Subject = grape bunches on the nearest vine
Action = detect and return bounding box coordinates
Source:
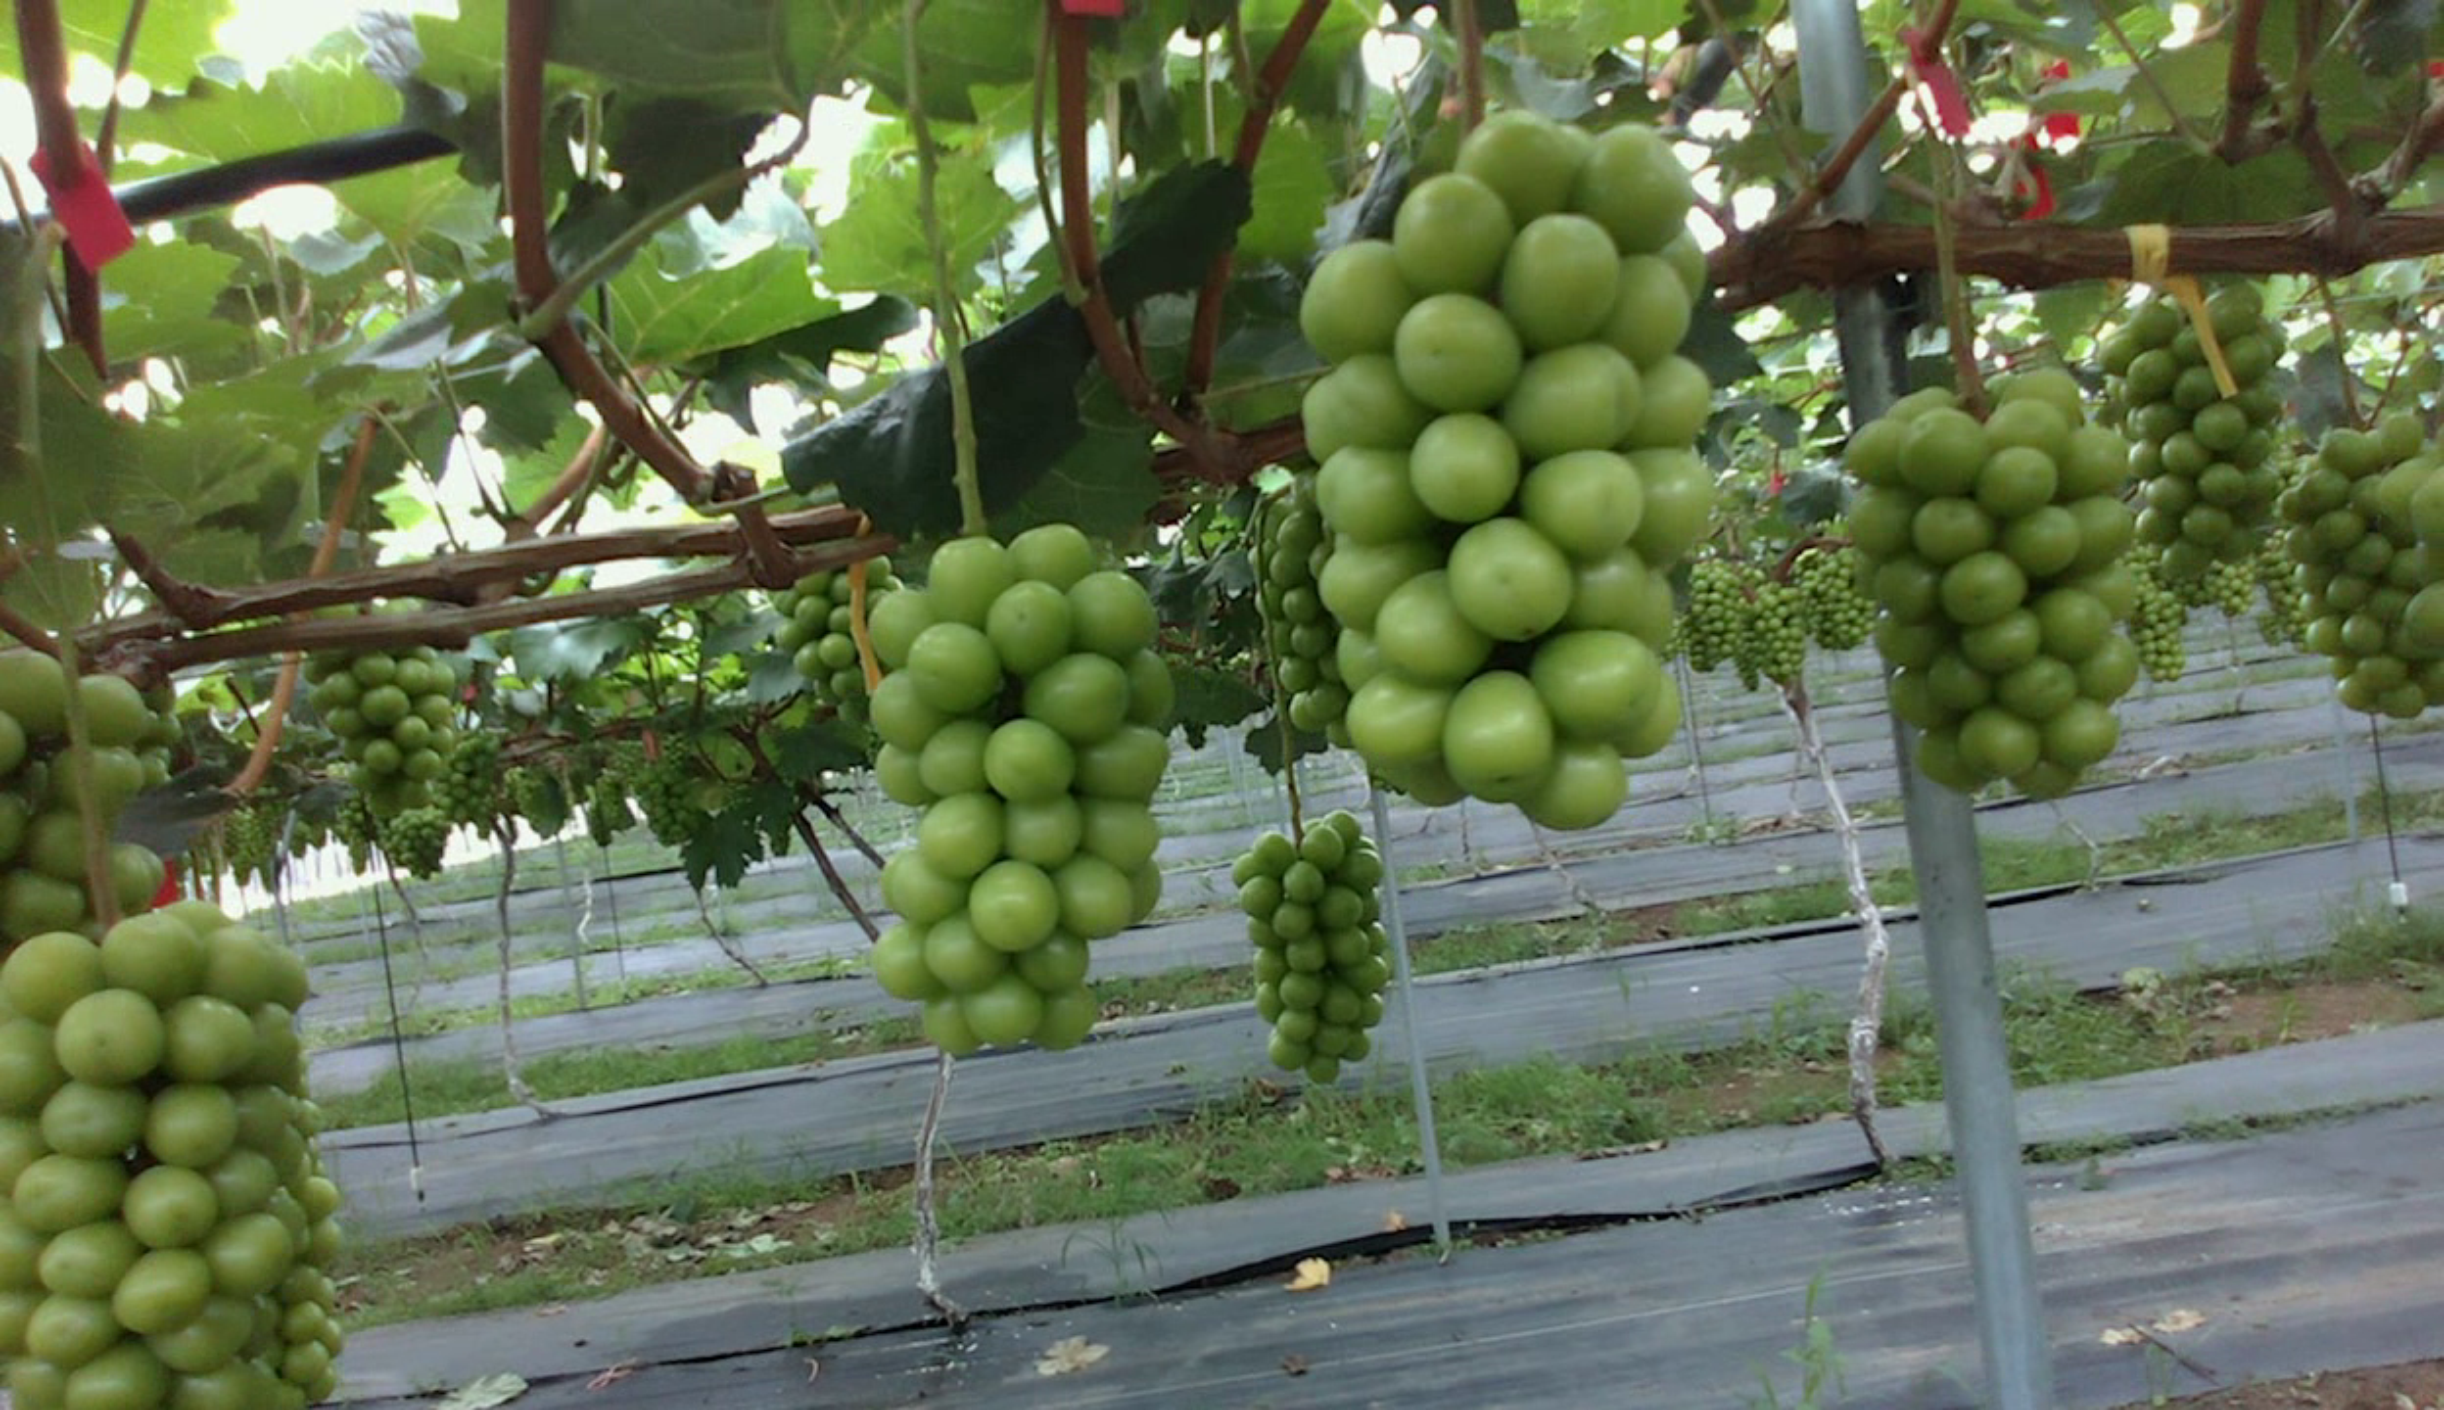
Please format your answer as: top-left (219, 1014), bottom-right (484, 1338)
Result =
top-left (0, 897), bottom-right (309, 1408)
top-left (869, 523), bottom-right (1173, 1059)
top-left (1298, 106), bottom-right (1715, 832)
top-left (1839, 372), bottom-right (2144, 797)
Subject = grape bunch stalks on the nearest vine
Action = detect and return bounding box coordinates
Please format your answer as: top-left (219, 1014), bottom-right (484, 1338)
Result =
top-left (1449, 0), bottom-right (1484, 127)
top-left (901, 0), bottom-right (983, 537)
top-left (12, 213), bottom-right (119, 930)
top-left (1925, 135), bottom-right (1994, 413)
